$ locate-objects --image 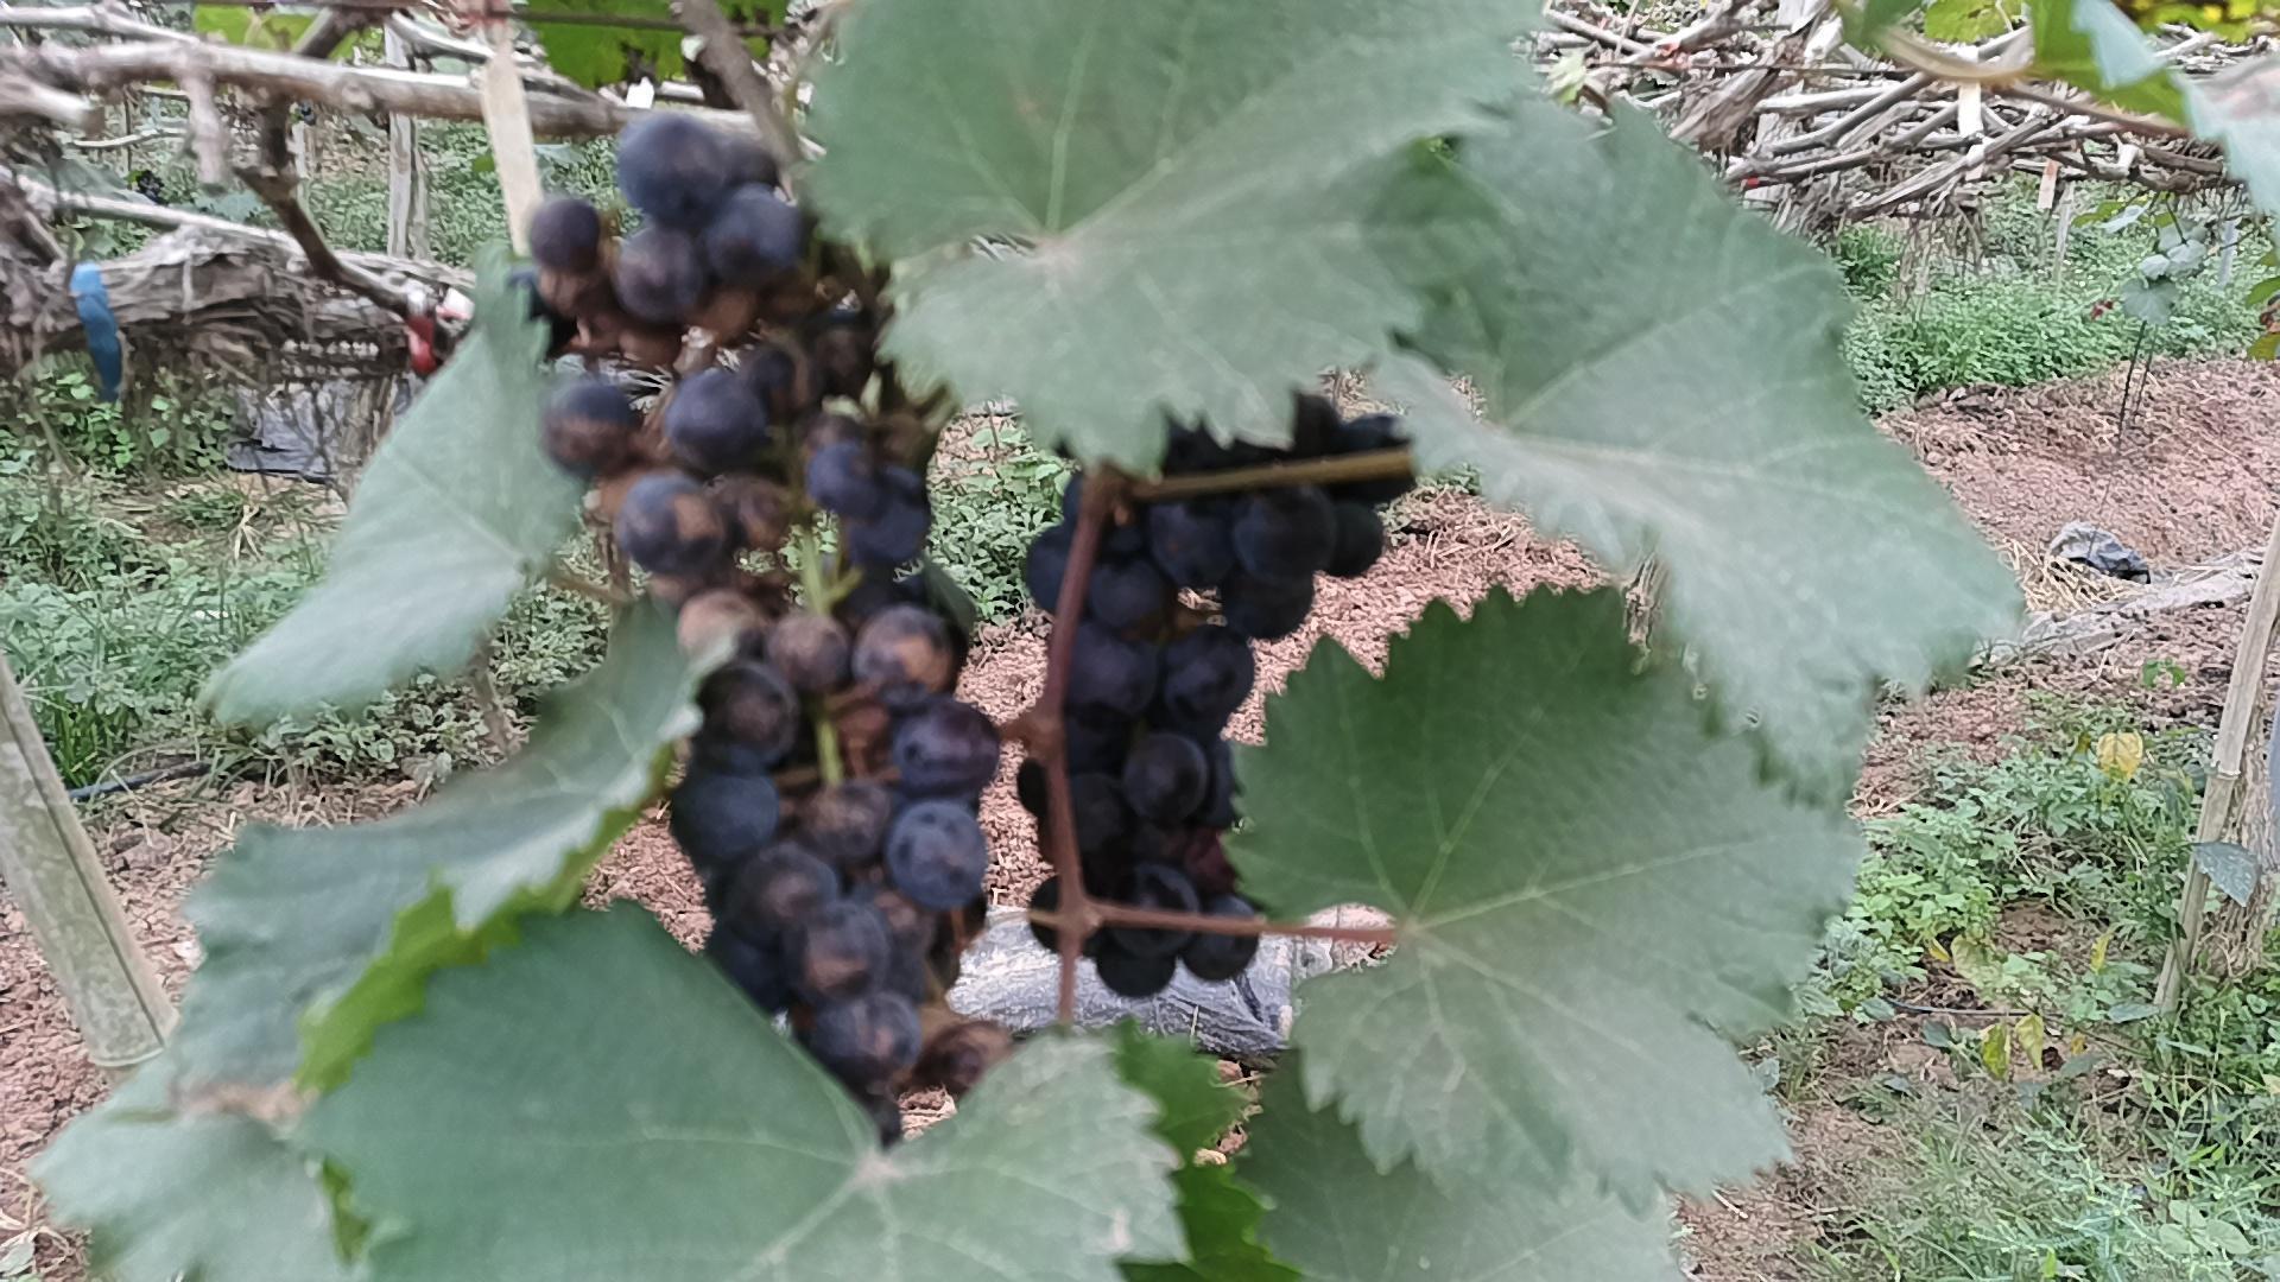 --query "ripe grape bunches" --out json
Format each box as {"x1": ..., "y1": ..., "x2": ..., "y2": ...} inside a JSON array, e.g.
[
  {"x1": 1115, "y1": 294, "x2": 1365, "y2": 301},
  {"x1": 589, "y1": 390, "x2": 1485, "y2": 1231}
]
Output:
[
  {"x1": 511, "y1": 114, "x2": 1007, "y2": 1104},
  {"x1": 1018, "y1": 395, "x2": 1412, "y2": 996}
]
